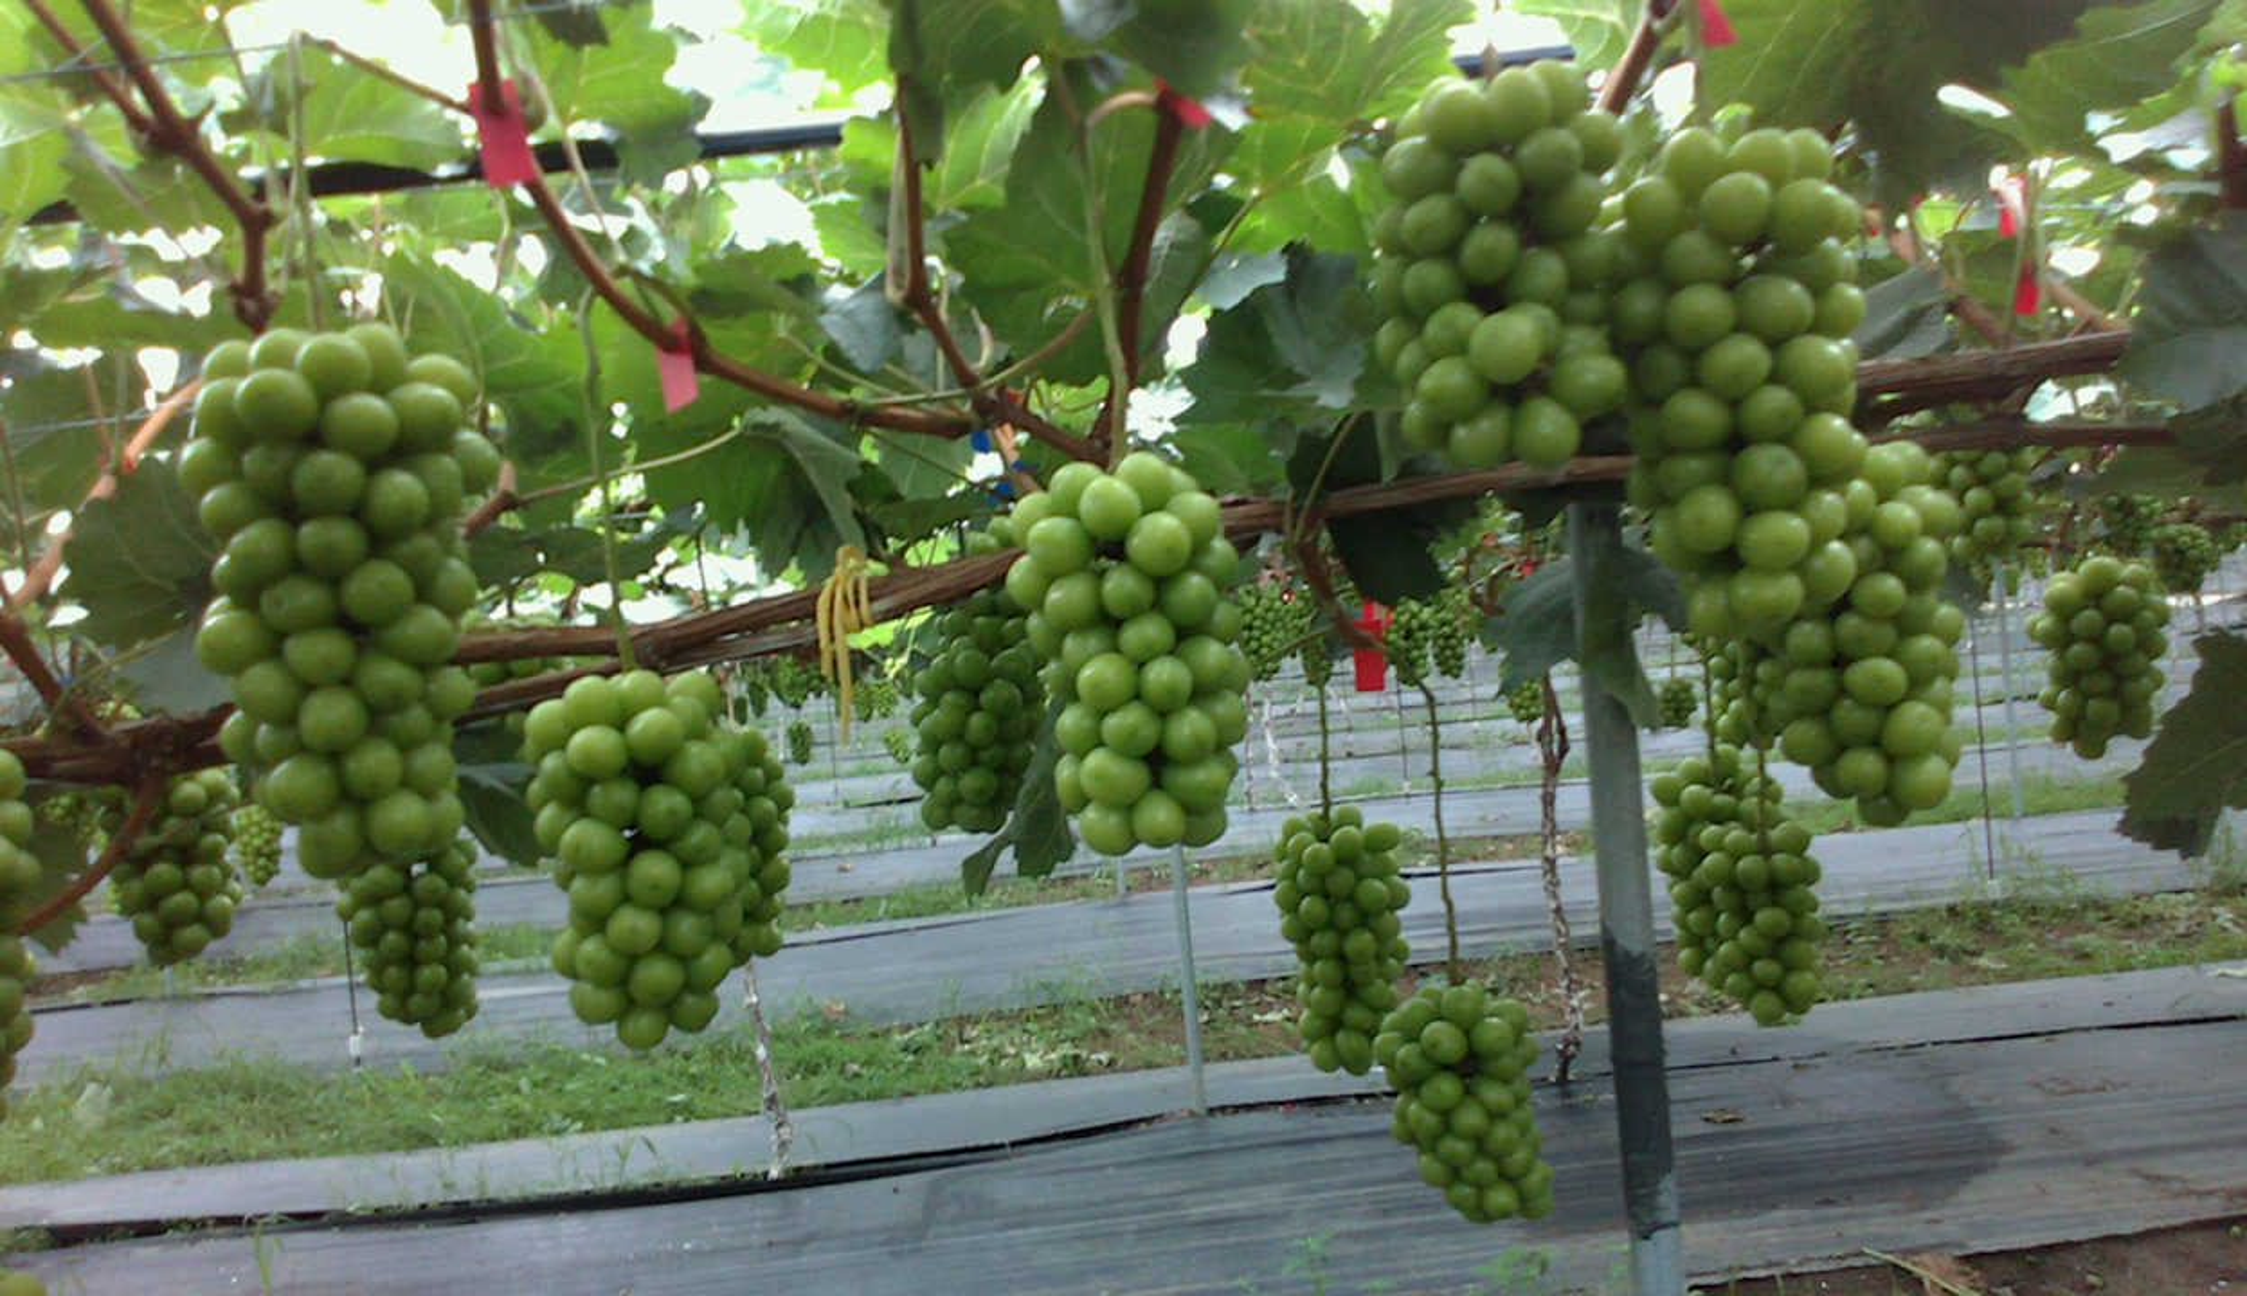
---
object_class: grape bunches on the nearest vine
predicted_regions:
[1003,455,1248,857]
[171,322,495,878]
[524,670,754,1053]
[1773,443,1963,826]
[1368,63,1628,468]
[1608,128,1867,643]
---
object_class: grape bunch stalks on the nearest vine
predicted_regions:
[286,31,324,329]
[569,286,634,671]
[1485,47,1498,77]
[1682,2,1714,128]
[1068,94,1147,473]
